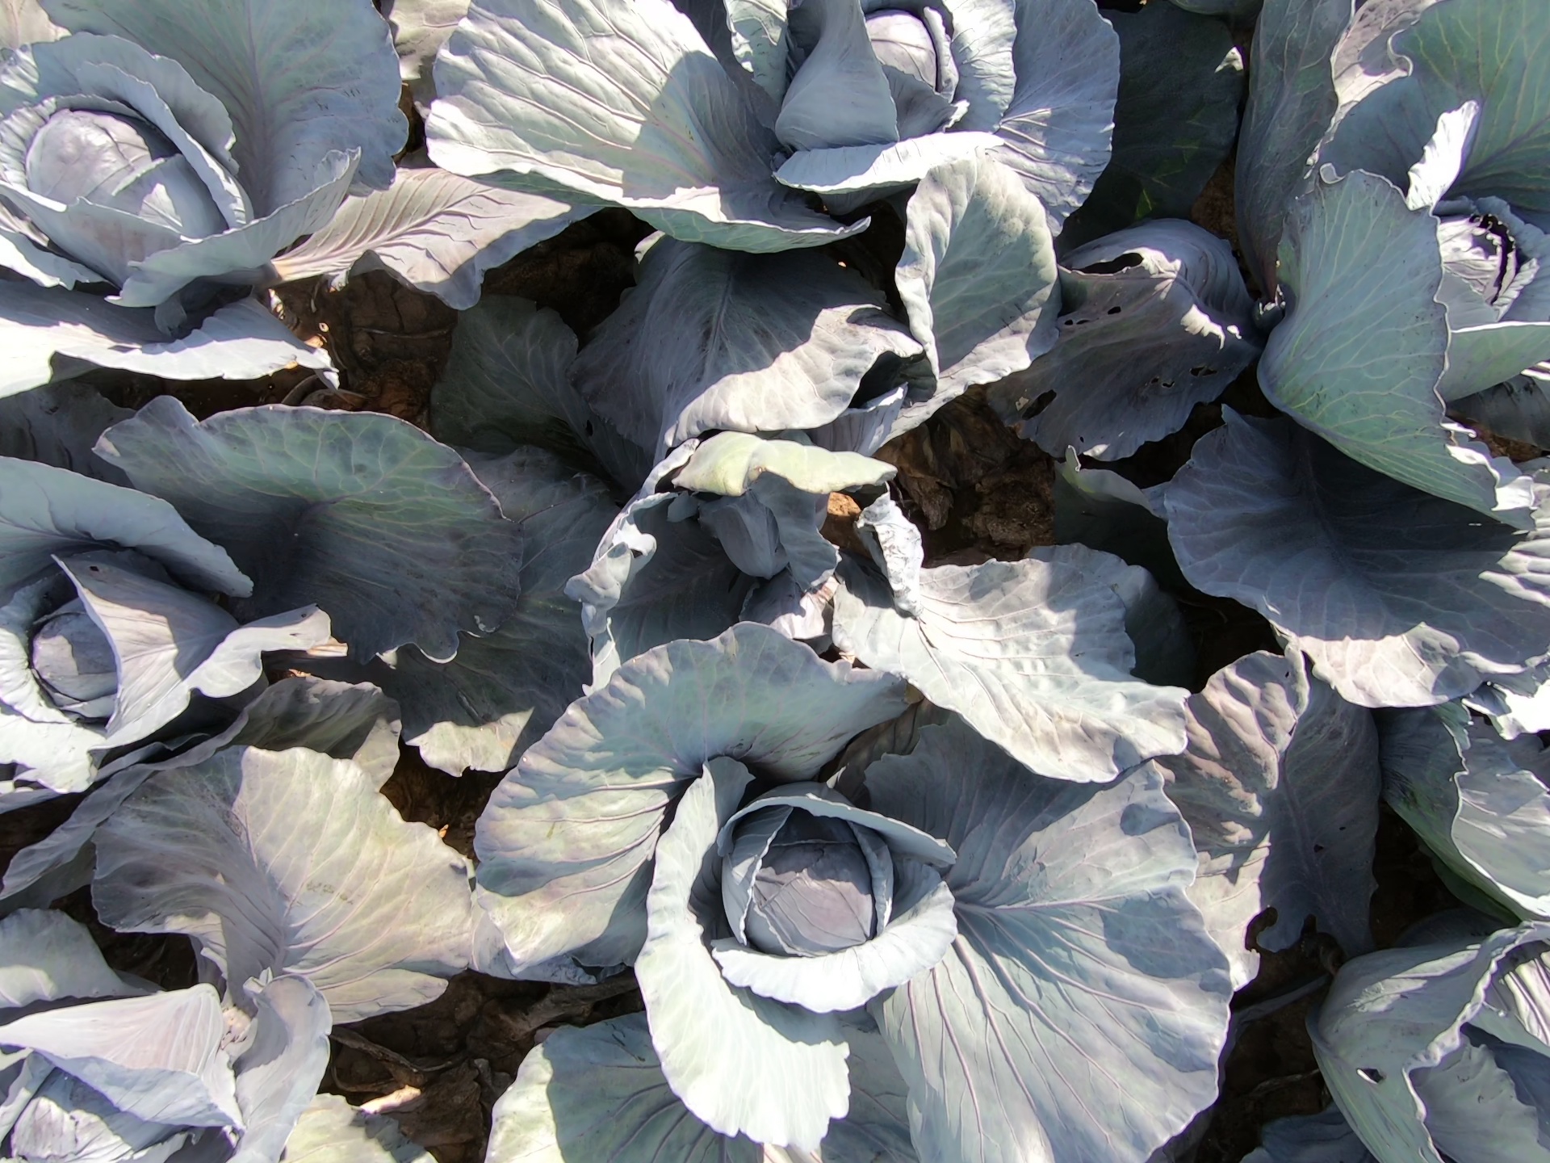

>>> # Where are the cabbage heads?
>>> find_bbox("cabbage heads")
[1358,214,1520,356]
[30,588,202,713]
[701,415,831,568]
[10,1026,194,1157]
[728,795,892,958]
[833,7,959,145]
[24,106,231,294]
